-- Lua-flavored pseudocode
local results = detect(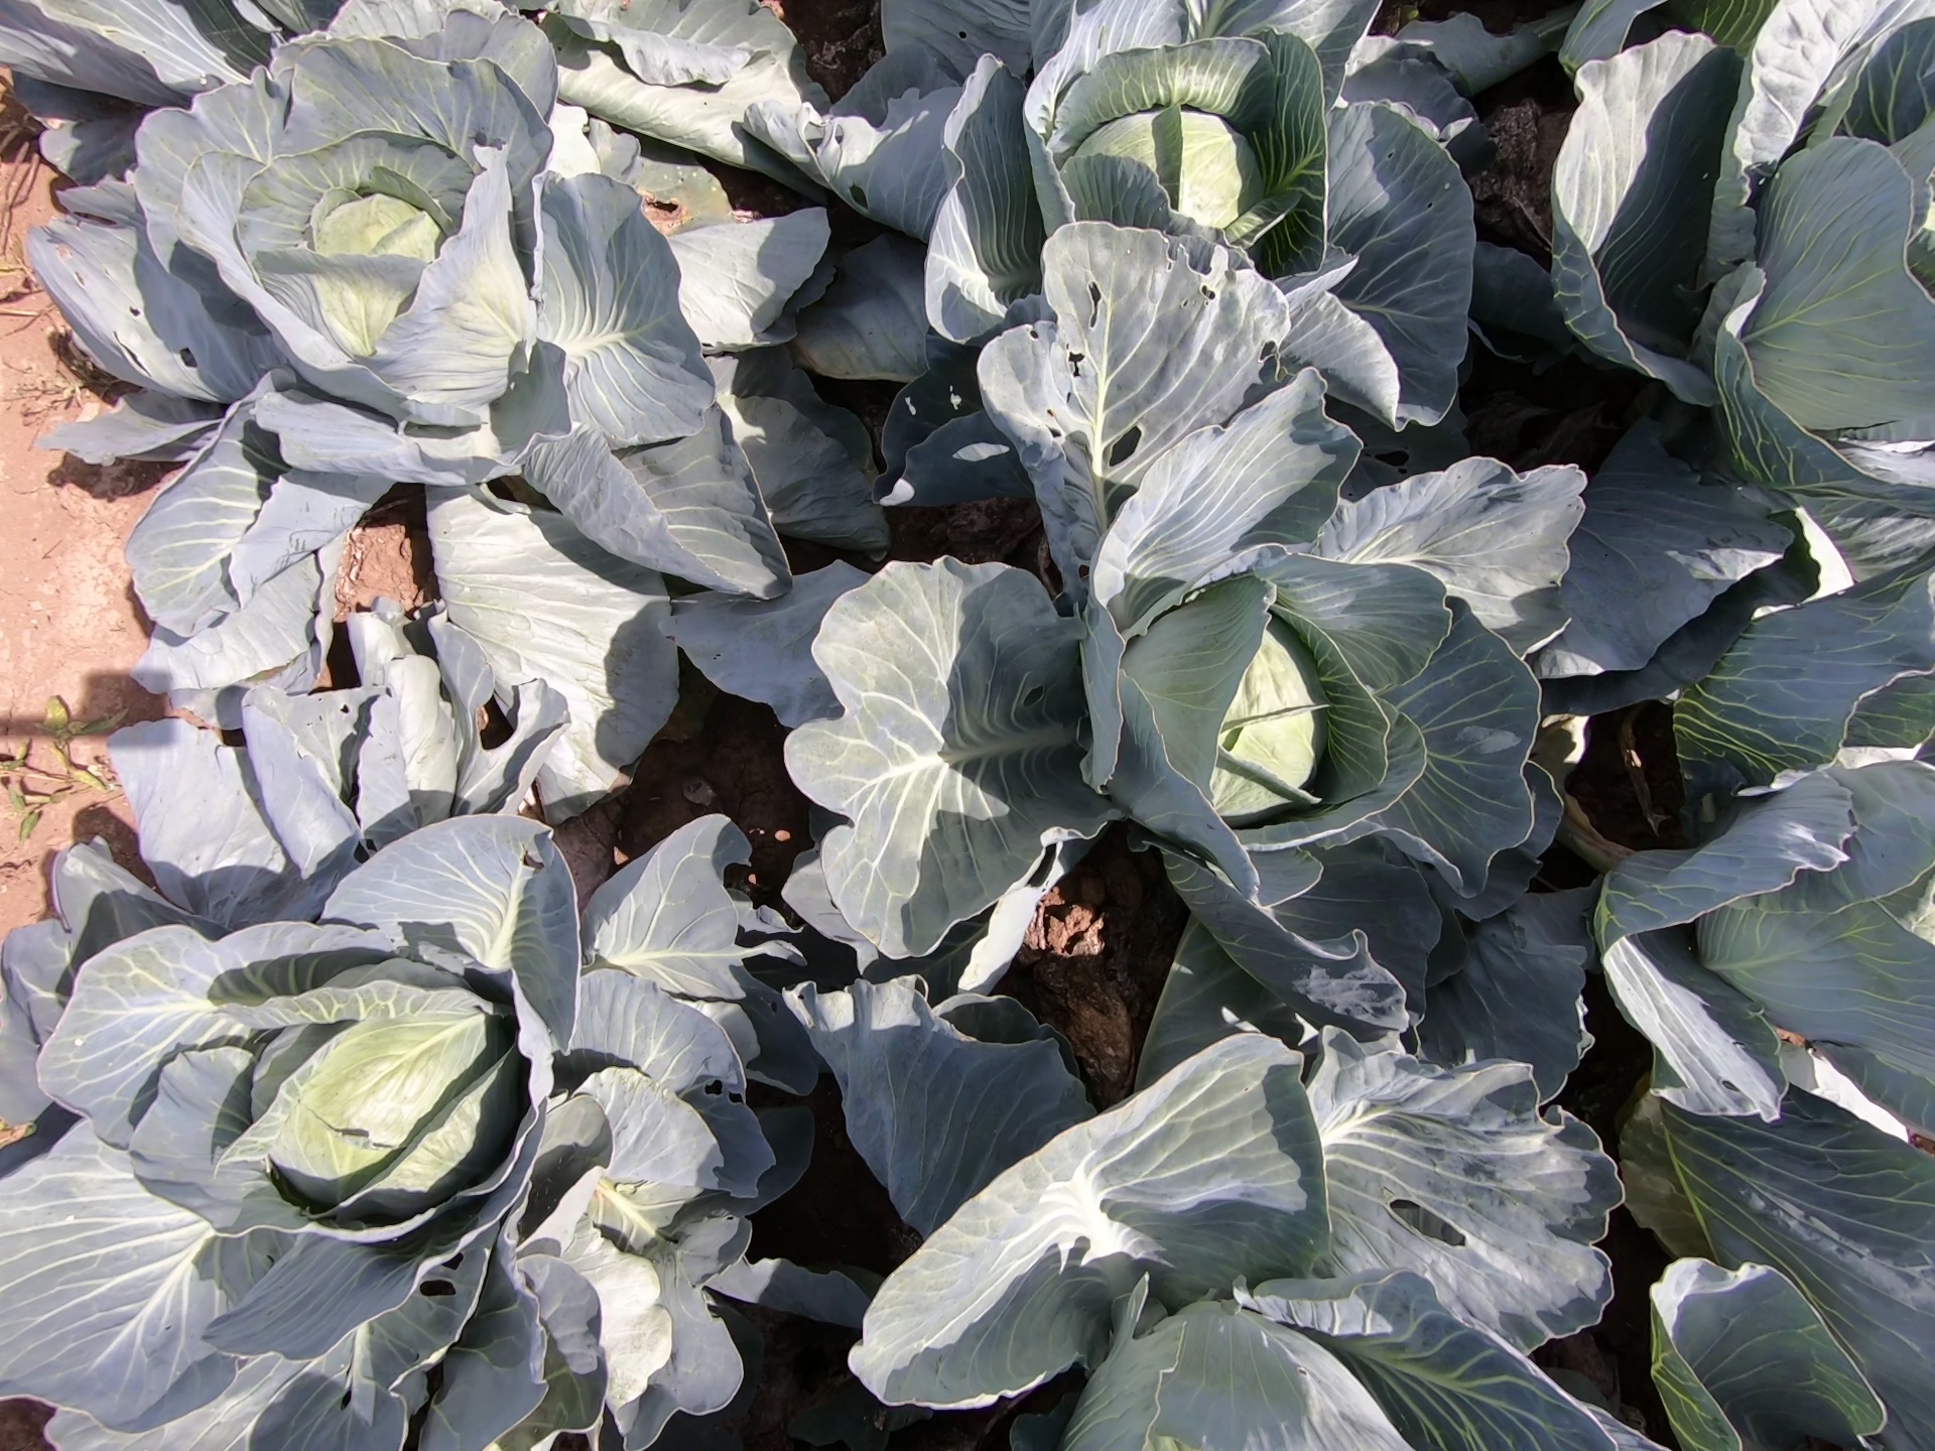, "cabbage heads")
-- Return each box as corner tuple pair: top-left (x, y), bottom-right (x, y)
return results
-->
(294, 191), (480, 380)
(1724, 778), (1930, 1049)
(1106, 1295), (1404, 1449)
(246, 959), (518, 1218)
(1062, 102), (1271, 301)
(1110, 599), (1331, 822)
